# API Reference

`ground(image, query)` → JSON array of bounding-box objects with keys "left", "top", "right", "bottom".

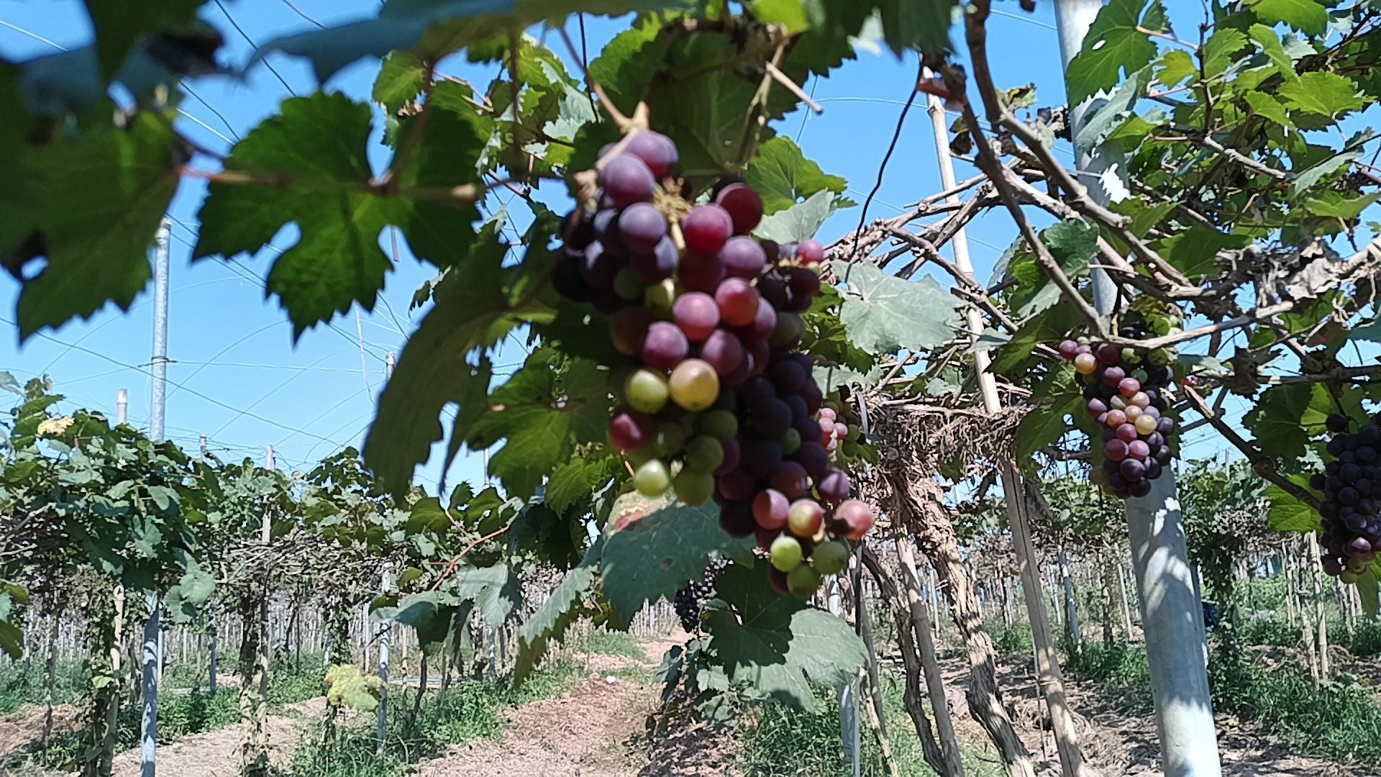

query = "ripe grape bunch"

[{"left": 673, "top": 563, "right": 719, "bottom": 632}]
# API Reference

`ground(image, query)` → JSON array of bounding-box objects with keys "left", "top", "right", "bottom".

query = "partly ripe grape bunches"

[
  {"left": 1310, "top": 413, "right": 1380, "bottom": 583},
  {"left": 555, "top": 129, "right": 774, "bottom": 506},
  {"left": 1059, "top": 310, "right": 1181, "bottom": 501},
  {"left": 712, "top": 238, "right": 875, "bottom": 596}
]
